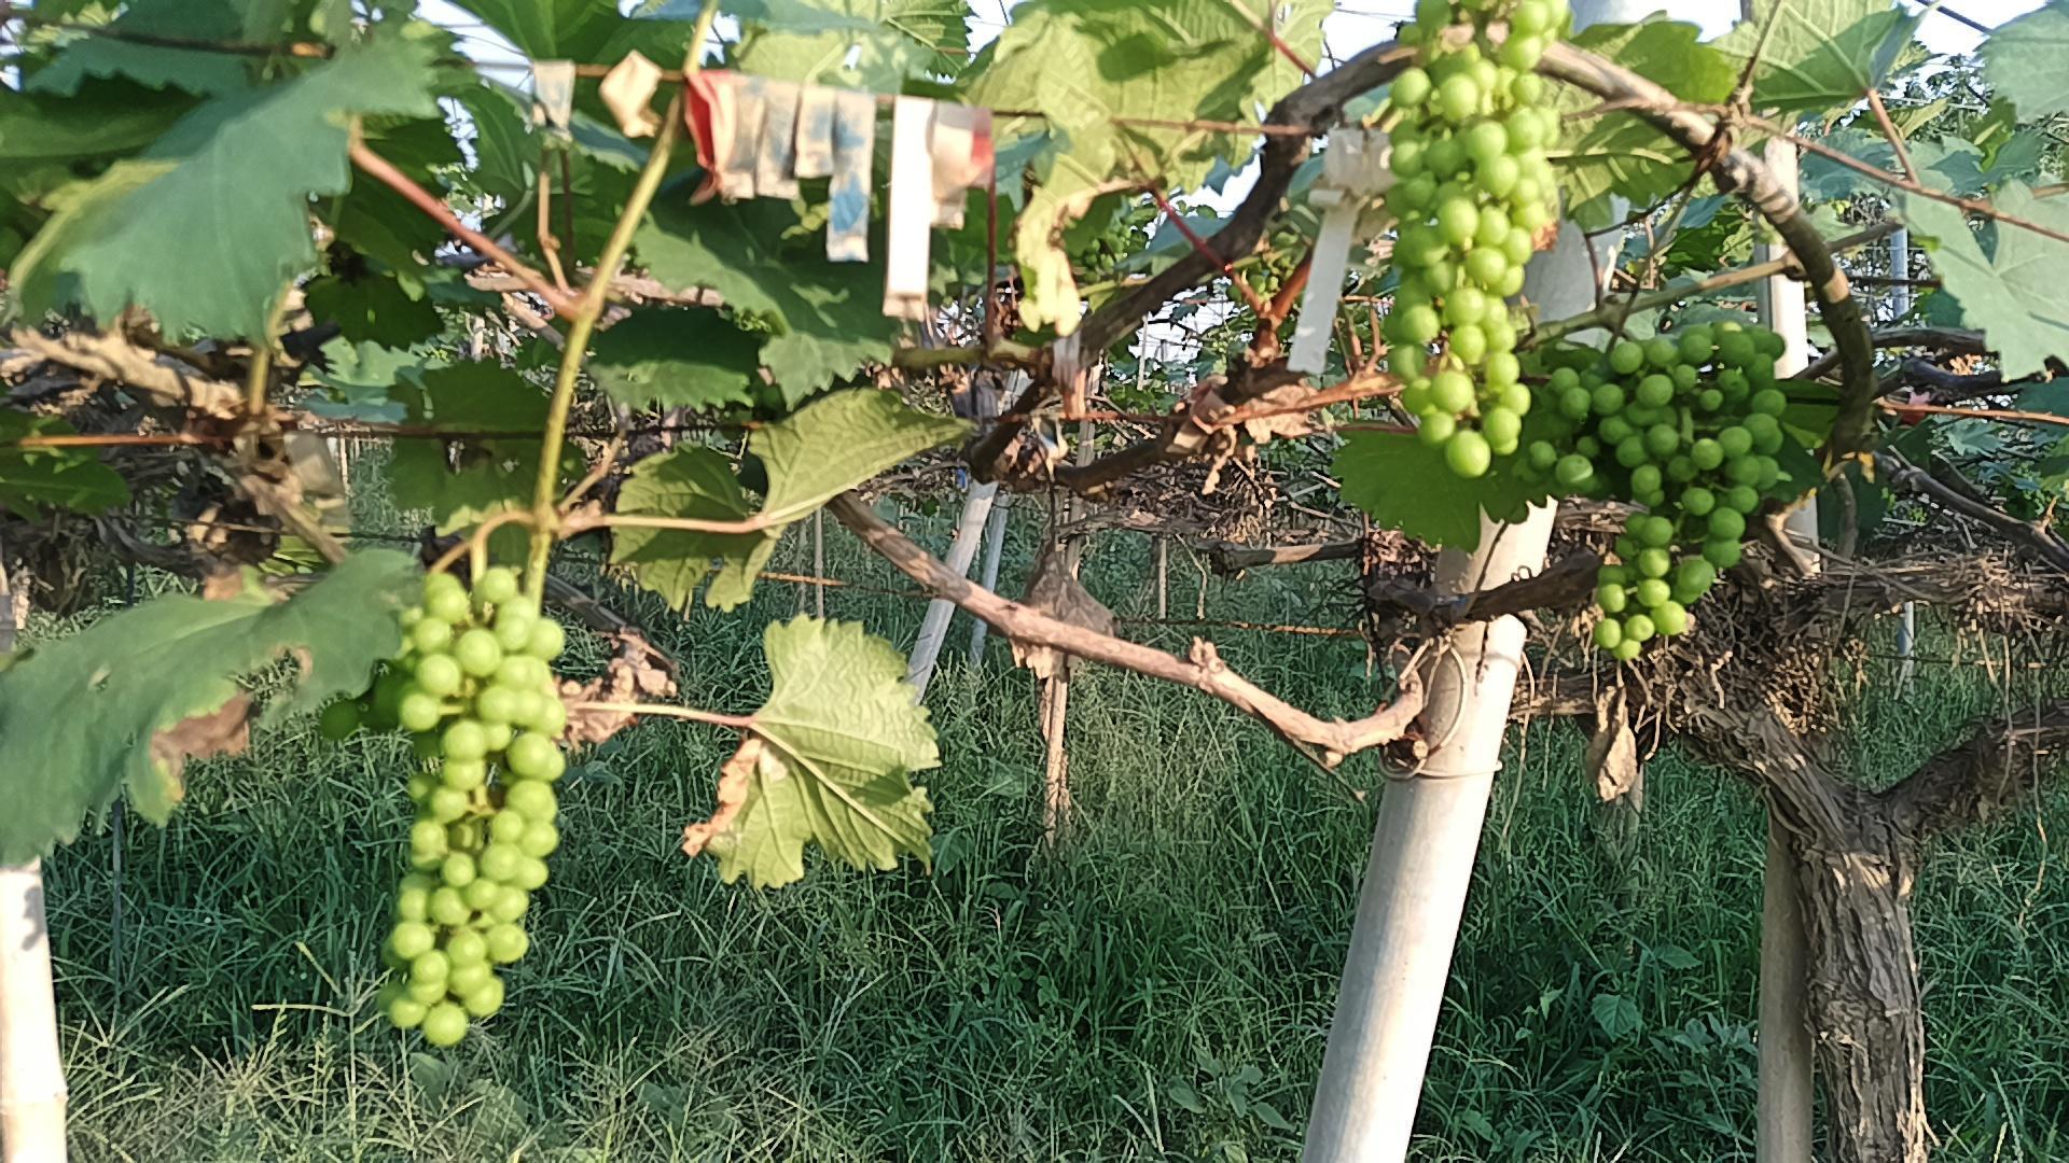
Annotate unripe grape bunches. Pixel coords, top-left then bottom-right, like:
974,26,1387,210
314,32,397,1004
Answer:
319,568,567,1043
1528,324,1785,658
1386,0,1569,477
